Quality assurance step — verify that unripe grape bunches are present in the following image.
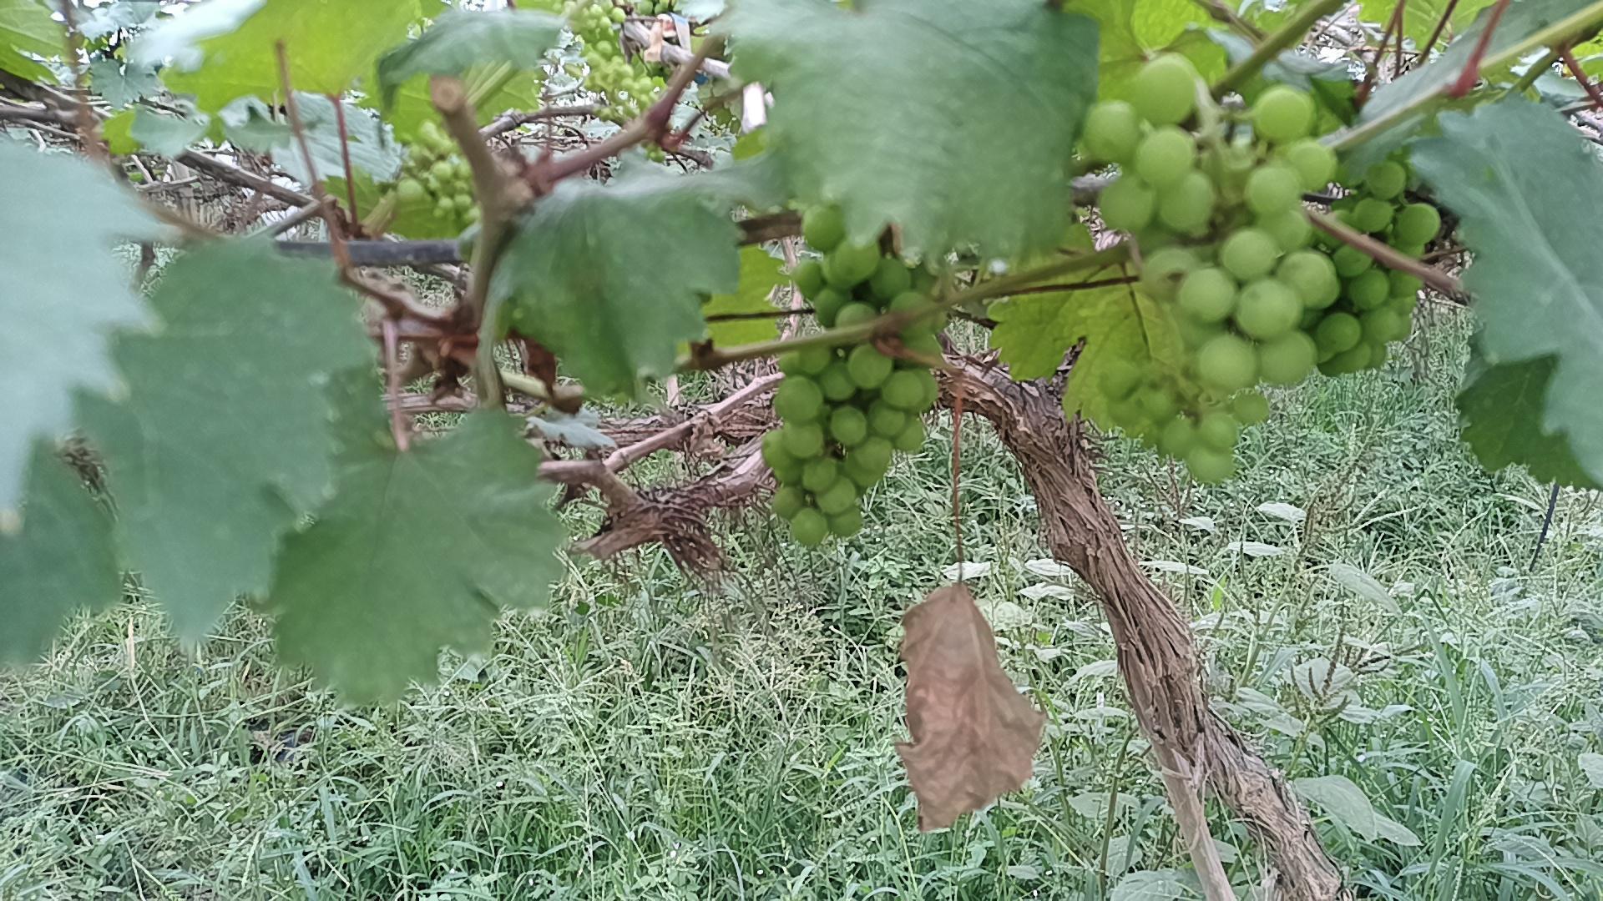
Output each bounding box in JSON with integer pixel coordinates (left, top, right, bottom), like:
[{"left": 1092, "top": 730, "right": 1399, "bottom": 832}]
[
  {"left": 1081, "top": 54, "right": 1337, "bottom": 479},
  {"left": 762, "top": 205, "right": 950, "bottom": 548},
  {"left": 1305, "top": 164, "right": 1441, "bottom": 375},
  {"left": 382, "top": 114, "right": 488, "bottom": 225}
]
